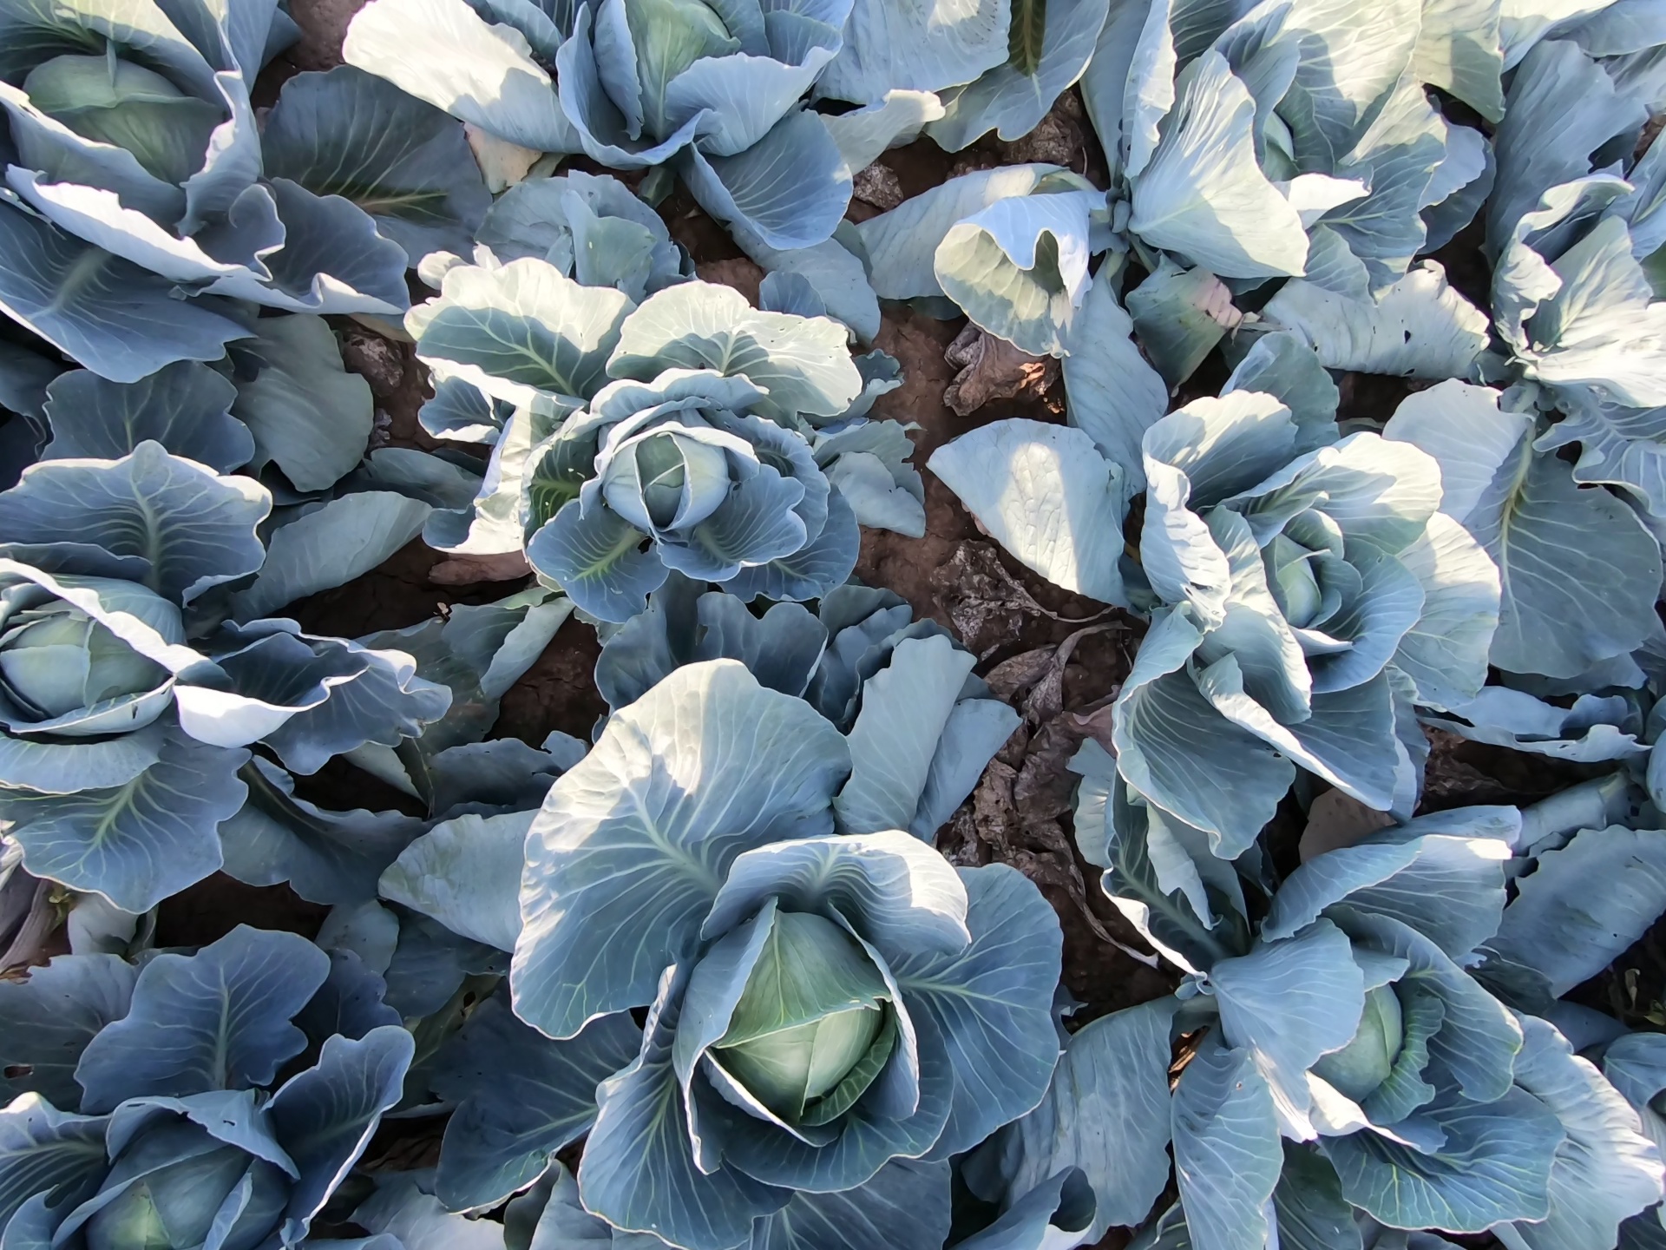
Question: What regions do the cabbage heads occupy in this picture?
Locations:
[601,428,725,523]
[1233,530,1321,628]
[594,3,738,129]
[84,1124,285,1246]
[2,589,175,722]
[710,912,876,1106]
[1190,97,1295,220]
[1299,968,1407,1102]
[20,50,203,199]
